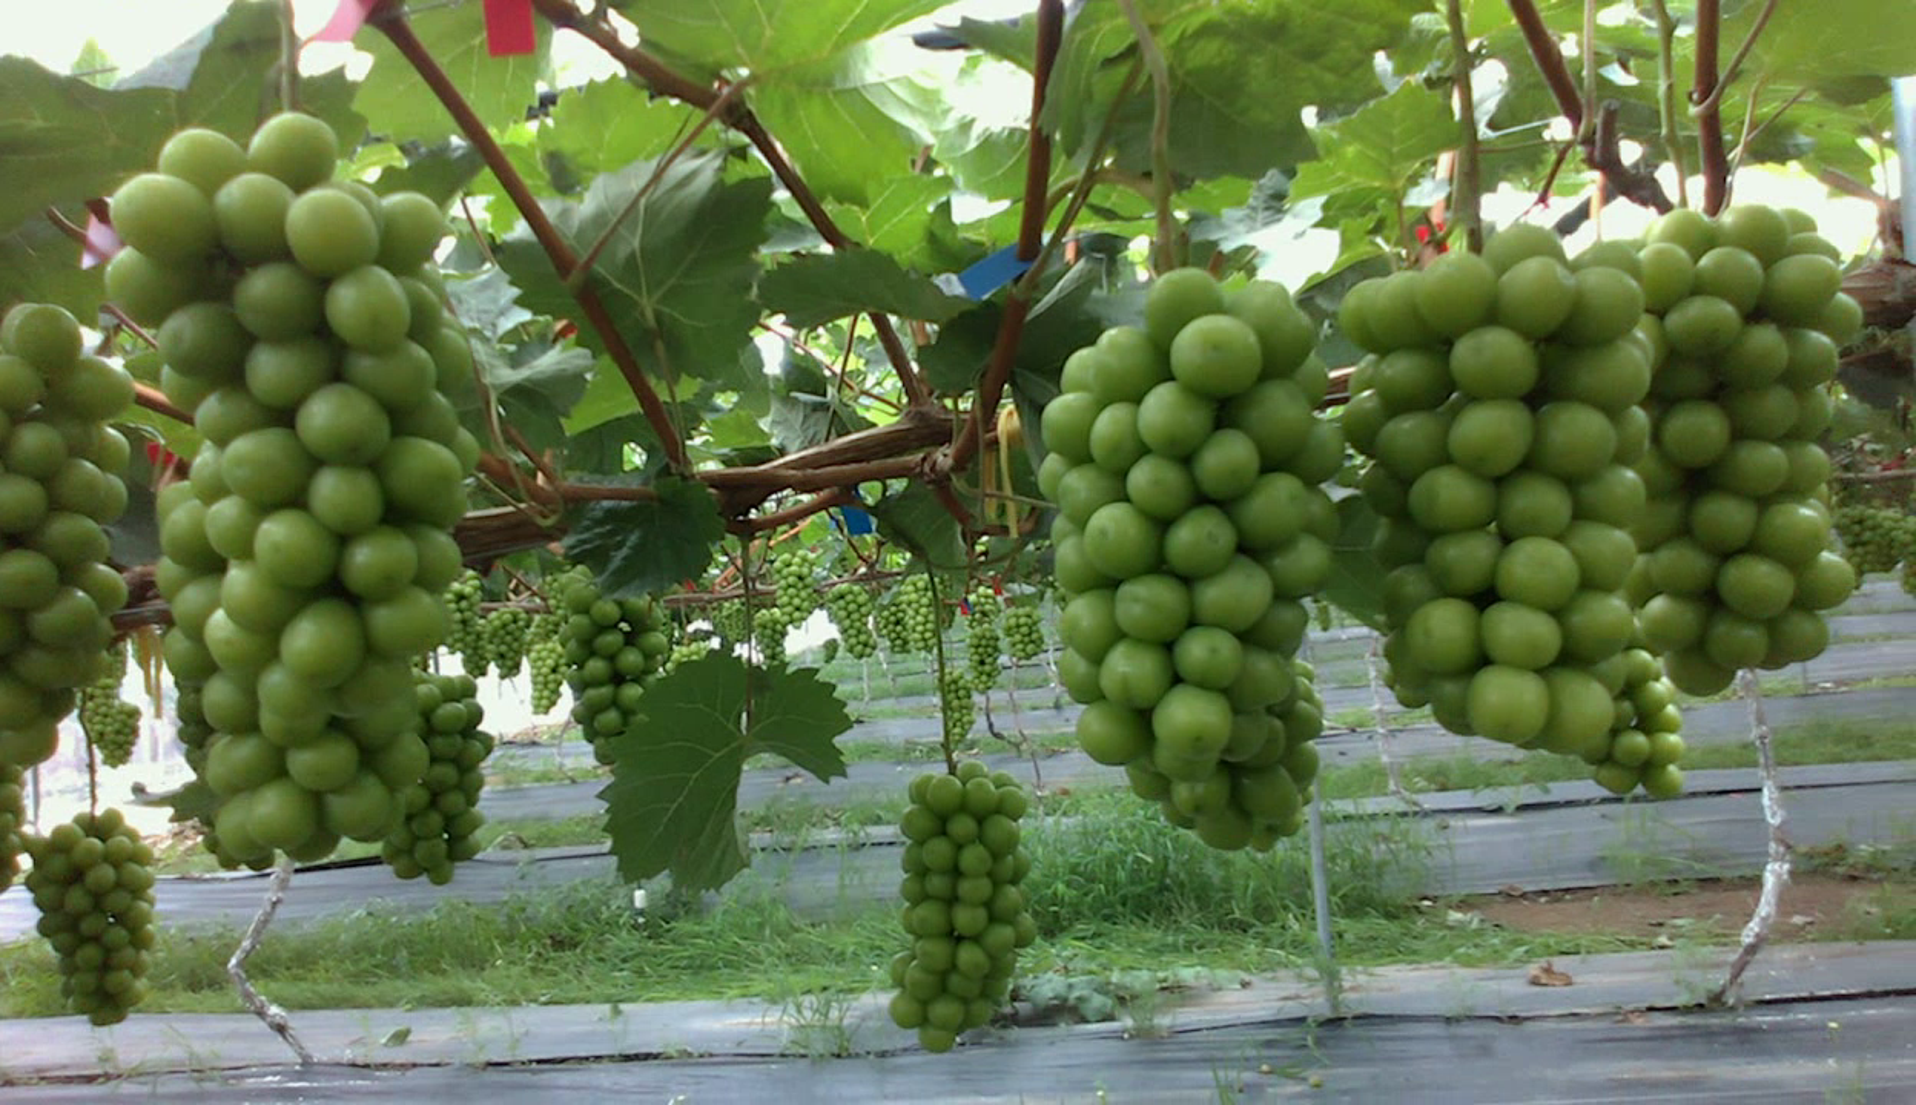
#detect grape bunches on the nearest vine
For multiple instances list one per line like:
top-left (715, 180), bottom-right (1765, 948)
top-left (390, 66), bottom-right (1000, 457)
top-left (889, 760), bottom-right (1035, 1053)
top-left (154, 482), bottom-right (431, 861)
top-left (101, 112), bottom-right (473, 729)
top-left (1340, 226), bottom-right (1653, 750)
top-left (1039, 267), bottom-right (1343, 853)
top-left (0, 302), bottom-right (134, 767)
top-left (1630, 204), bottom-right (1864, 694)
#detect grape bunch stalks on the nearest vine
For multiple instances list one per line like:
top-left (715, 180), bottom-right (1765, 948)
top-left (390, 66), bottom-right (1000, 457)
top-left (1125, 2), bottom-right (1171, 266)
top-left (921, 551), bottom-right (956, 772)
top-left (1449, 2), bottom-right (1485, 241)
top-left (1655, 2), bottom-right (1692, 201)
top-left (276, 5), bottom-right (298, 106)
